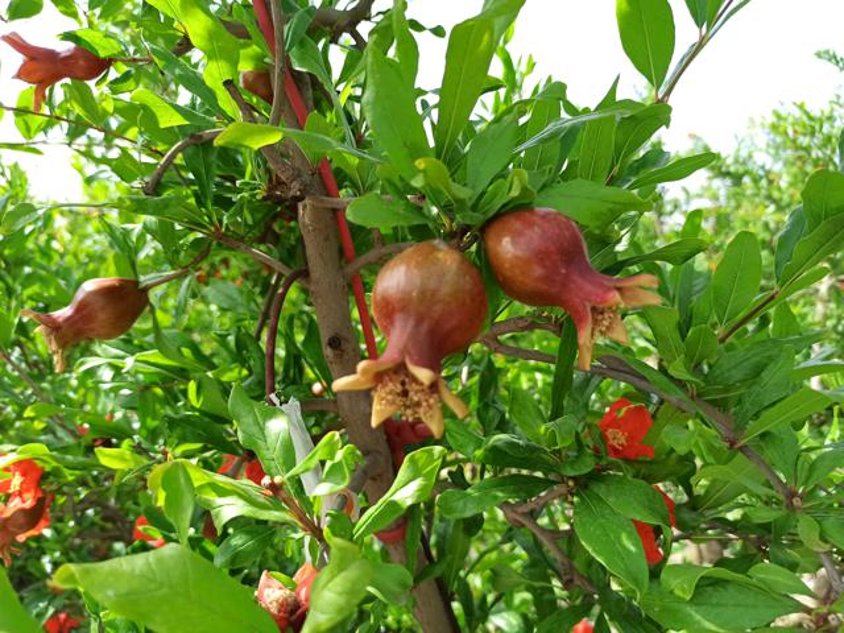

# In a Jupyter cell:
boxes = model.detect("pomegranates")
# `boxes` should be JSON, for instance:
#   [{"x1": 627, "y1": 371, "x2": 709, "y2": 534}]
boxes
[
  {"x1": 0, "y1": 30, "x2": 115, "y2": 109},
  {"x1": 0, "y1": 495, "x2": 46, "y2": 566},
  {"x1": 485, "y1": 204, "x2": 666, "y2": 373},
  {"x1": 20, "y1": 277, "x2": 149, "y2": 373},
  {"x1": 330, "y1": 237, "x2": 489, "y2": 442}
]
